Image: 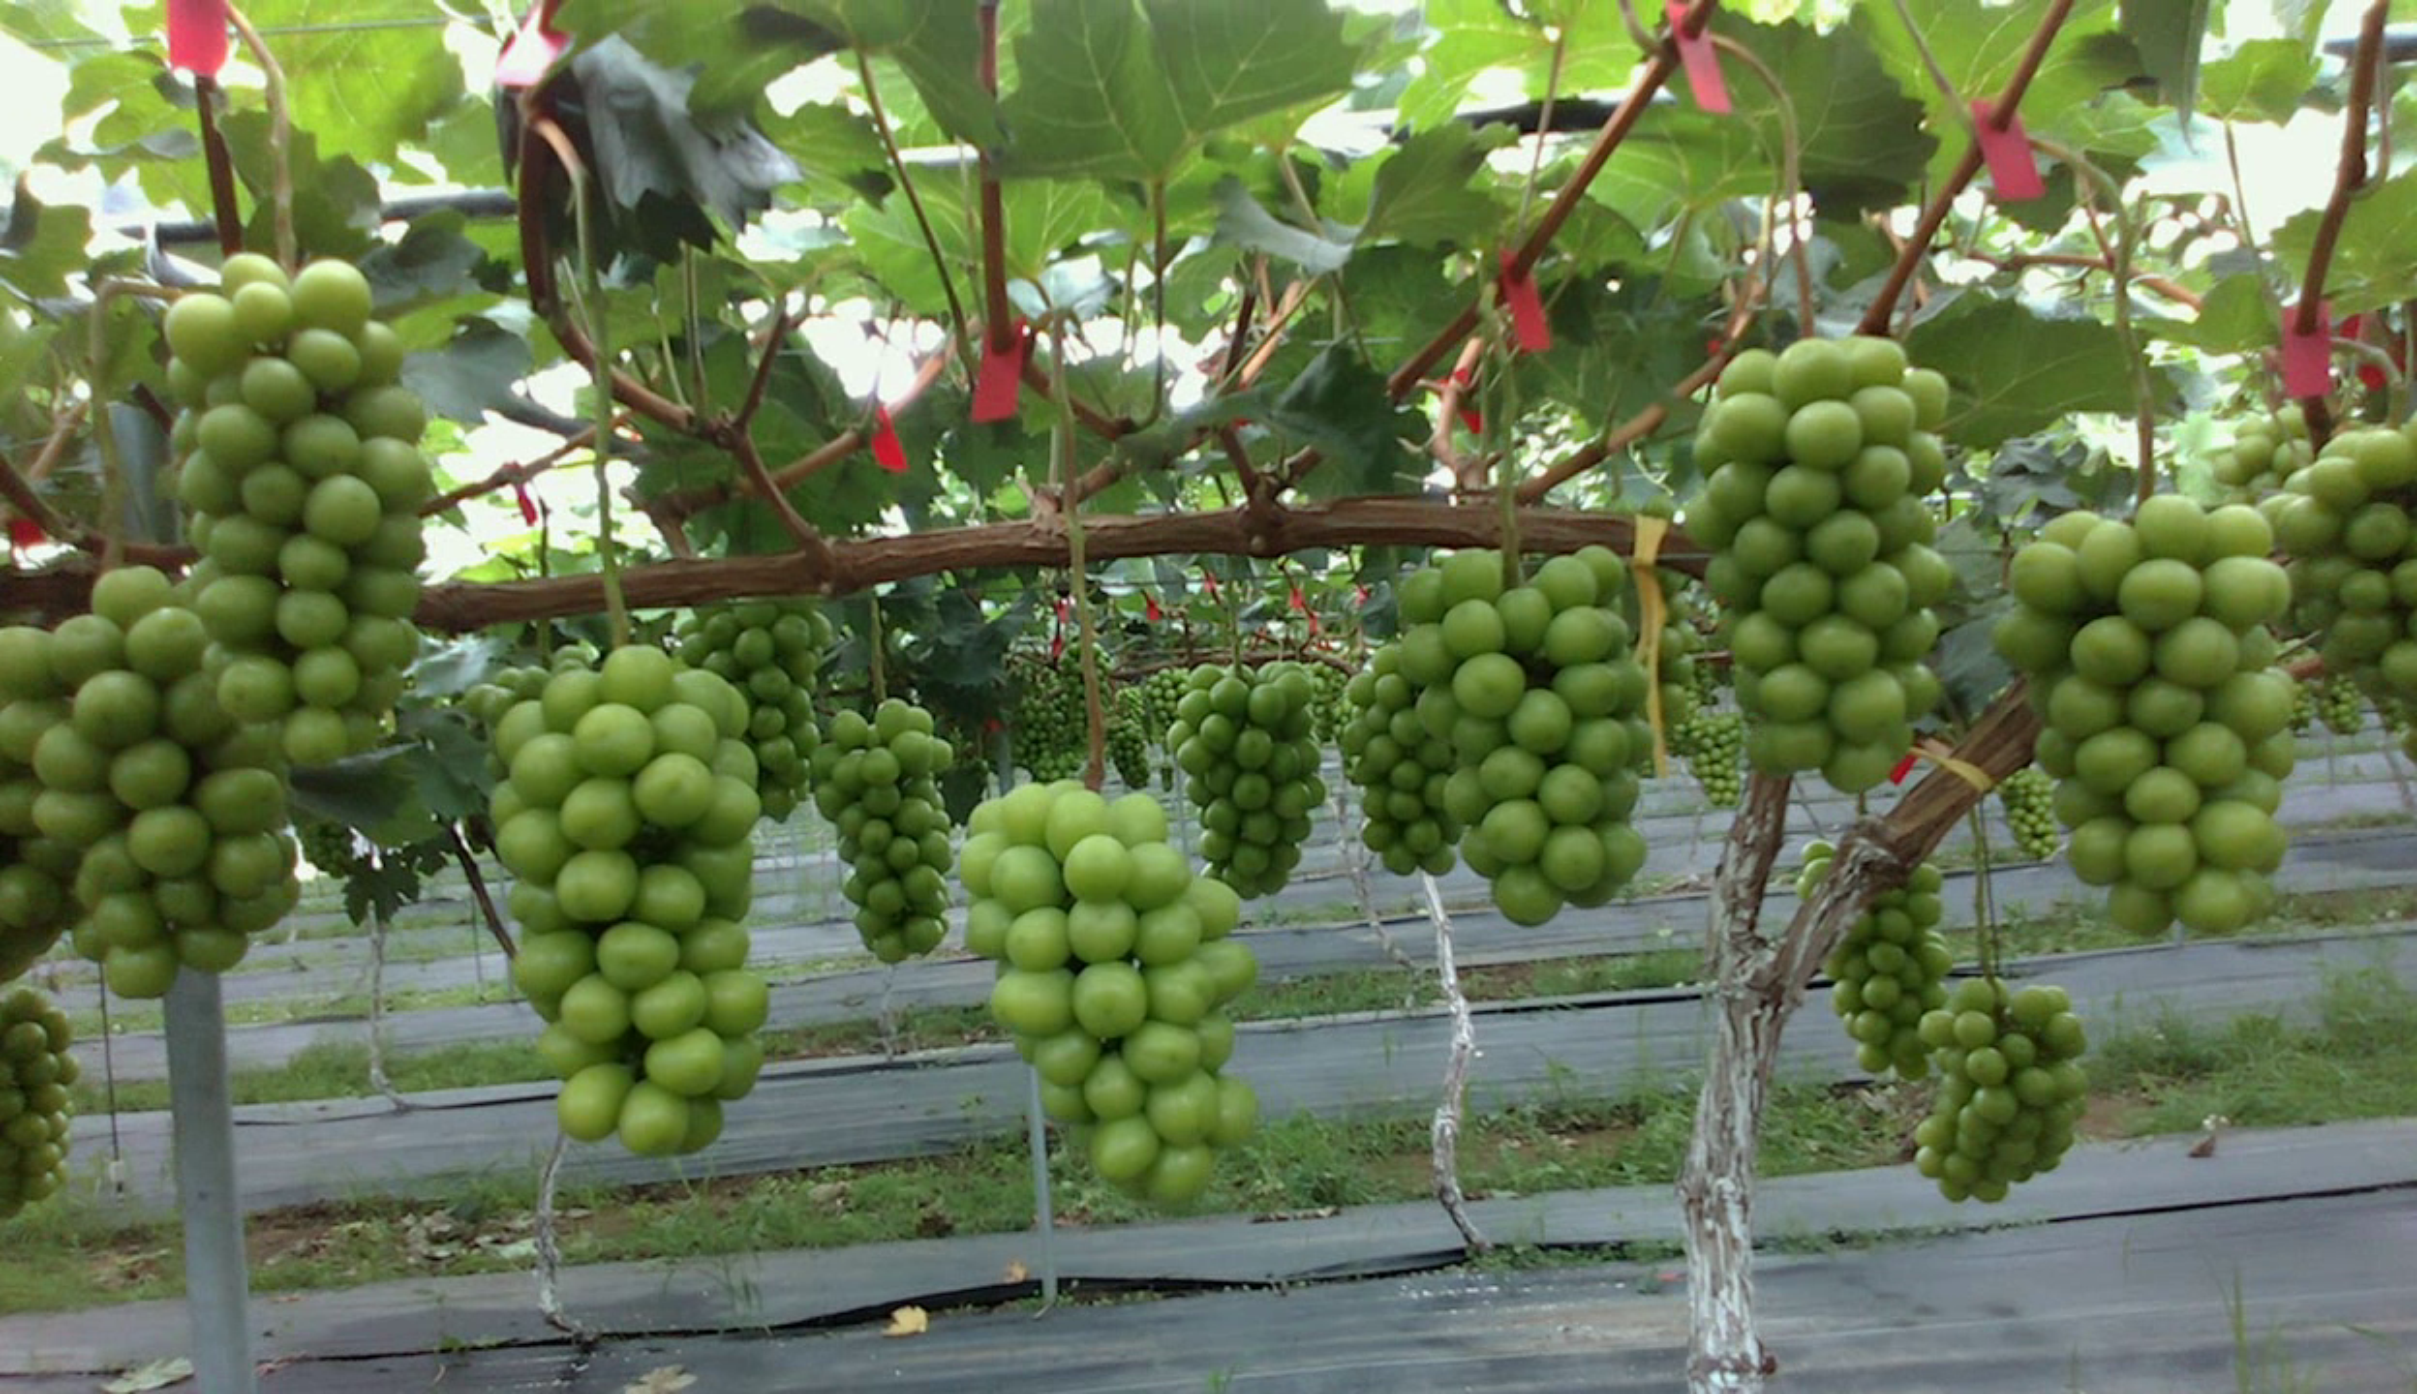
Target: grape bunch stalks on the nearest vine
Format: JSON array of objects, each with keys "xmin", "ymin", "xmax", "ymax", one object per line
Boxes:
[
  {"xmin": 1046, "ymin": 310, "xmax": 1106, "ymax": 790},
  {"xmin": 2336, "ymin": 339, "xmax": 2407, "ymax": 426},
  {"xmin": 229, "ymin": 10, "xmax": 292, "ymax": 269},
  {"xmin": 1718, "ymin": 37, "xmax": 1813, "ymax": 333},
  {"xmin": 1478, "ymin": 287, "xmax": 1524, "ymax": 585},
  {"xmin": 87, "ymin": 279, "xmax": 172, "ymax": 565},
  {"xmin": 2035, "ymin": 139, "xmax": 2156, "ymax": 498},
  {"xmin": 540, "ymin": 124, "xmax": 629, "ymax": 647}
]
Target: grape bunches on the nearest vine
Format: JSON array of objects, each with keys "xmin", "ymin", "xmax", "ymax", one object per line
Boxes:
[
  {"xmin": 163, "ymin": 254, "xmax": 432, "ymax": 773},
  {"xmin": 492, "ymin": 645, "xmax": 769, "ymax": 1154},
  {"xmin": 953, "ymin": 776, "xmax": 1255, "ymax": 1208},
  {"xmin": 0, "ymin": 563, "xmax": 302, "ymax": 999},
  {"xmin": 2262, "ymin": 414, "xmax": 2415, "ymax": 761},
  {"xmin": 1989, "ymin": 496, "xmax": 2295, "ymax": 939},
  {"xmin": 1685, "ymin": 337, "xmax": 1952, "ymax": 796},
  {"xmin": 1391, "ymin": 546, "xmax": 1654, "ymax": 927}
]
